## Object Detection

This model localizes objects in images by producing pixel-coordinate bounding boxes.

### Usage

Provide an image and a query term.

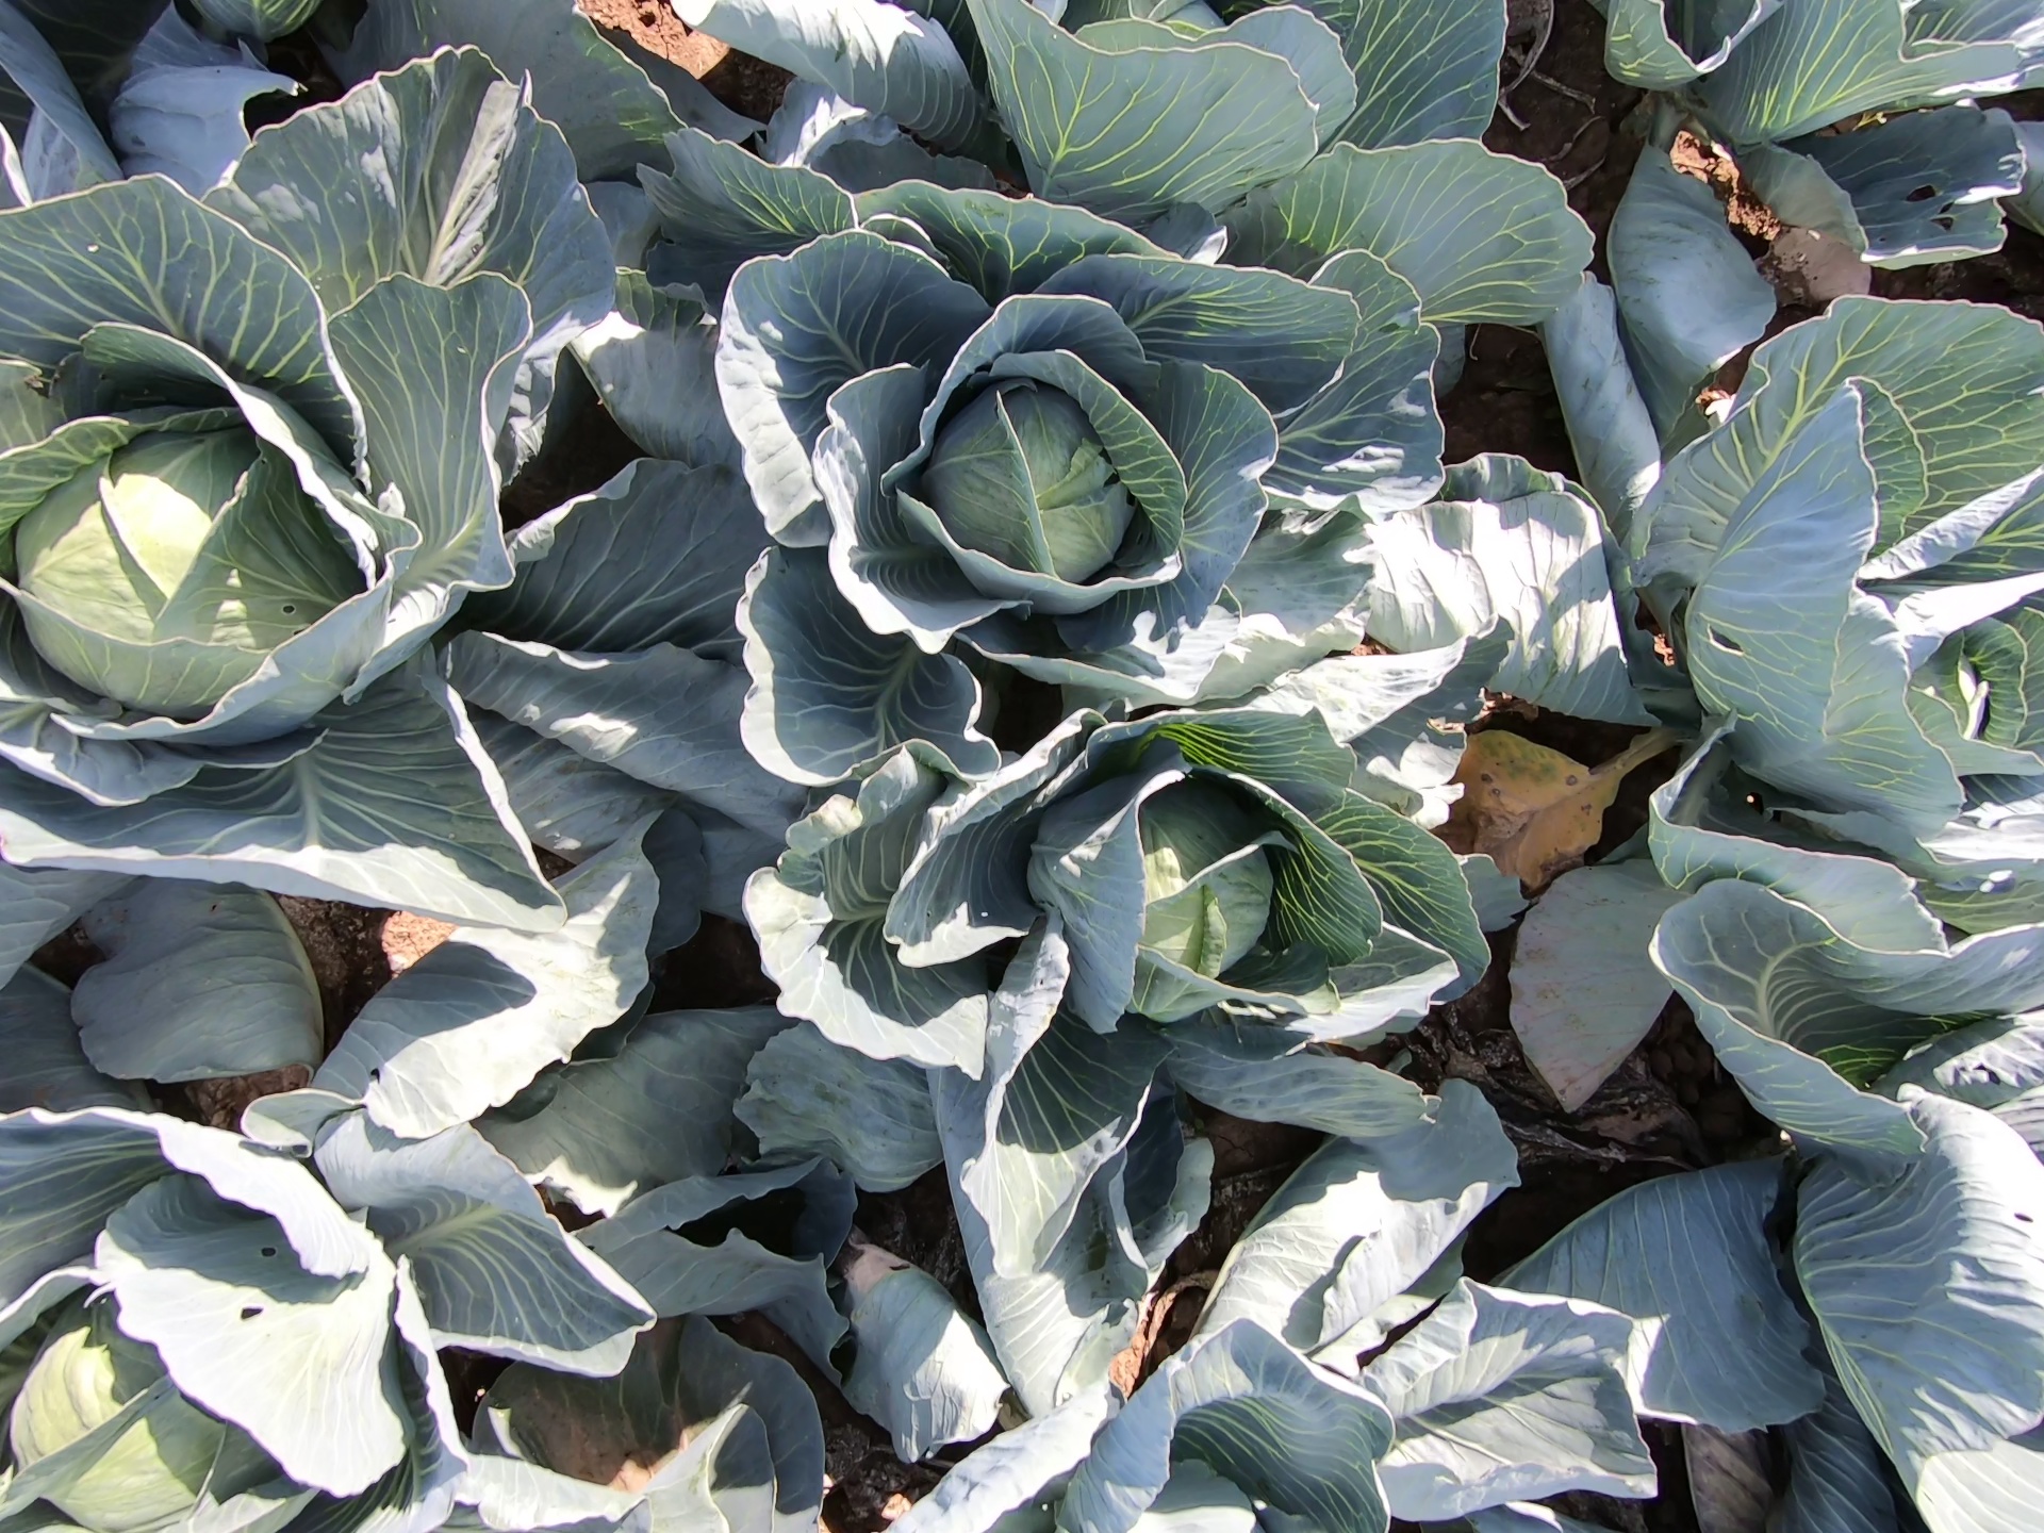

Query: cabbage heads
[1804,621,1983,778]
[1064,782,1275,991]
[11,422,329,710]
[11,1265,327,1528]
[935,383,1142,589]
[1091,3,1240,154]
